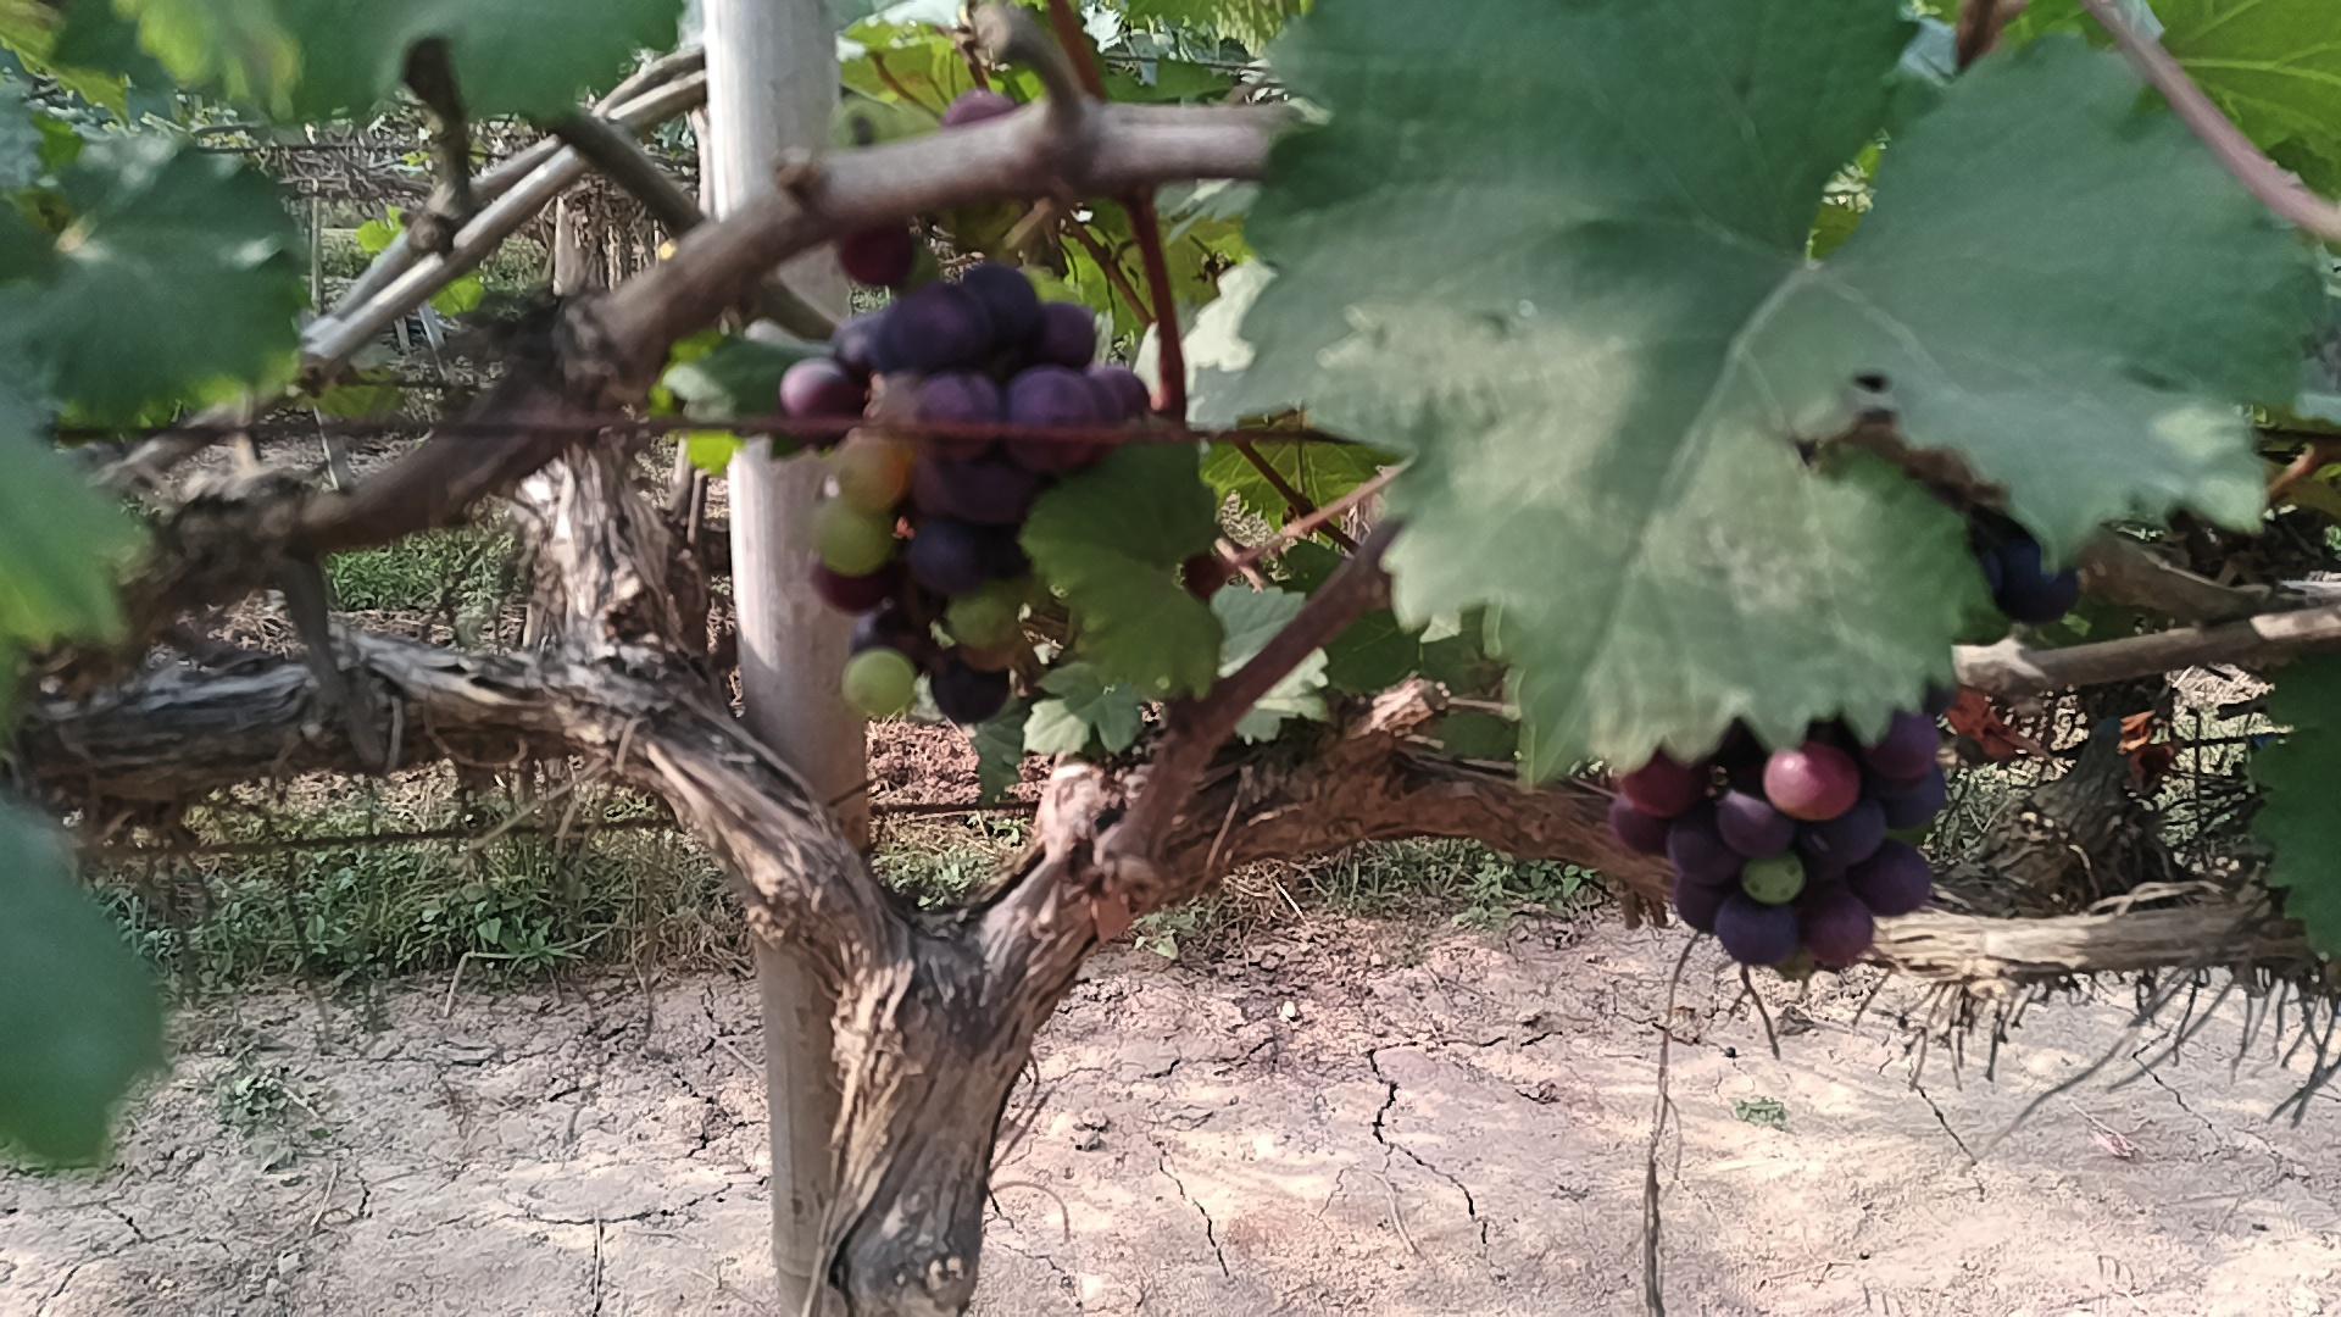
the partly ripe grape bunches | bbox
[779,228,1155,722]
[1609,711,1945,971]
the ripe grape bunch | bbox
[1967,502,2079,624]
